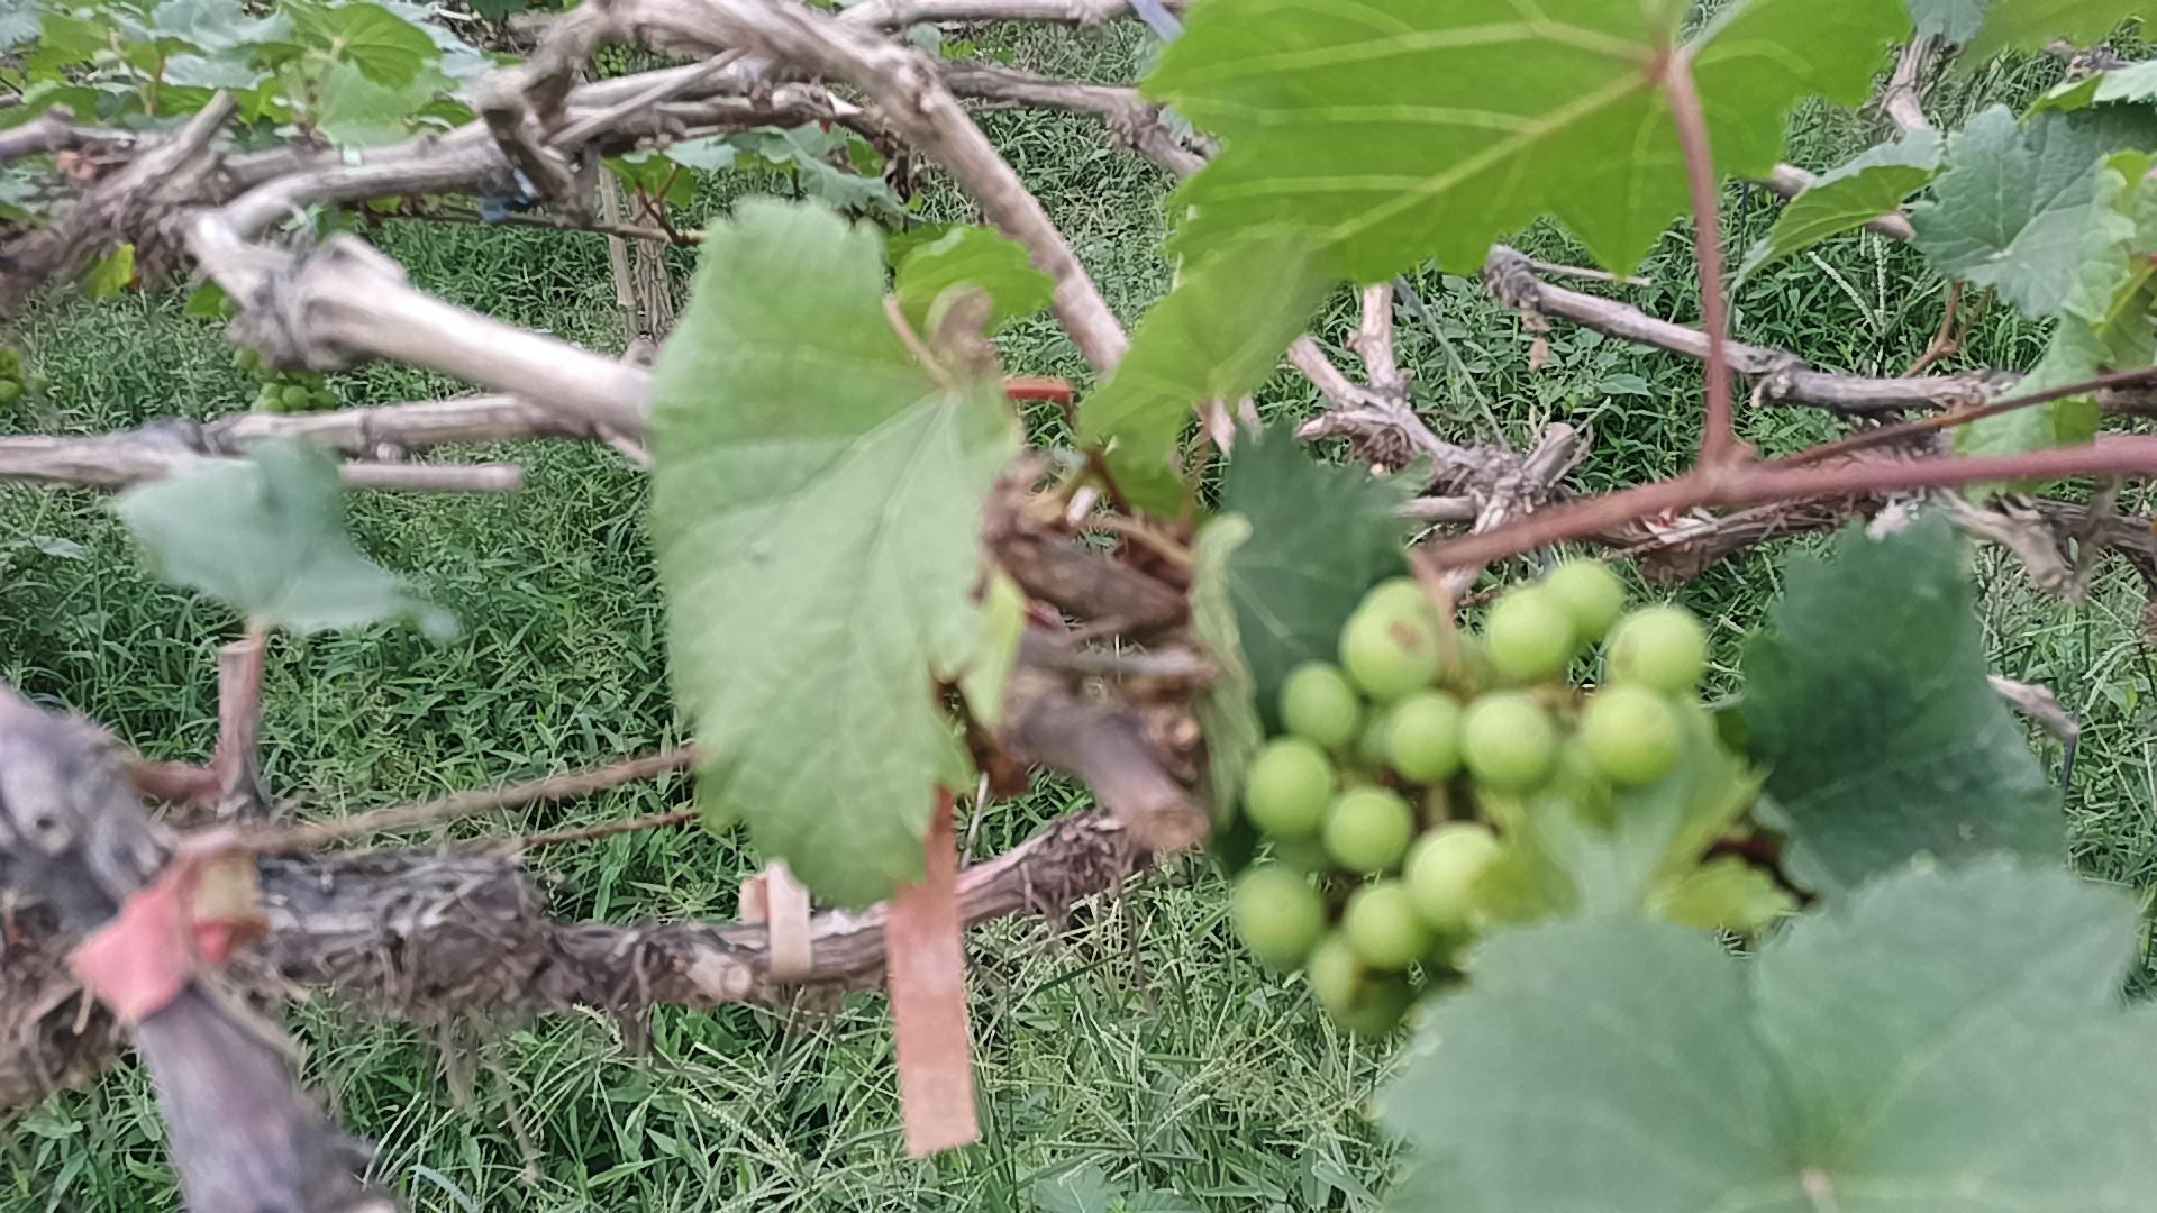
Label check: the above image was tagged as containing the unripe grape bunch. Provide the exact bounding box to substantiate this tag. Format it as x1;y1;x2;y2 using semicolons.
1231;560;1805;1034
